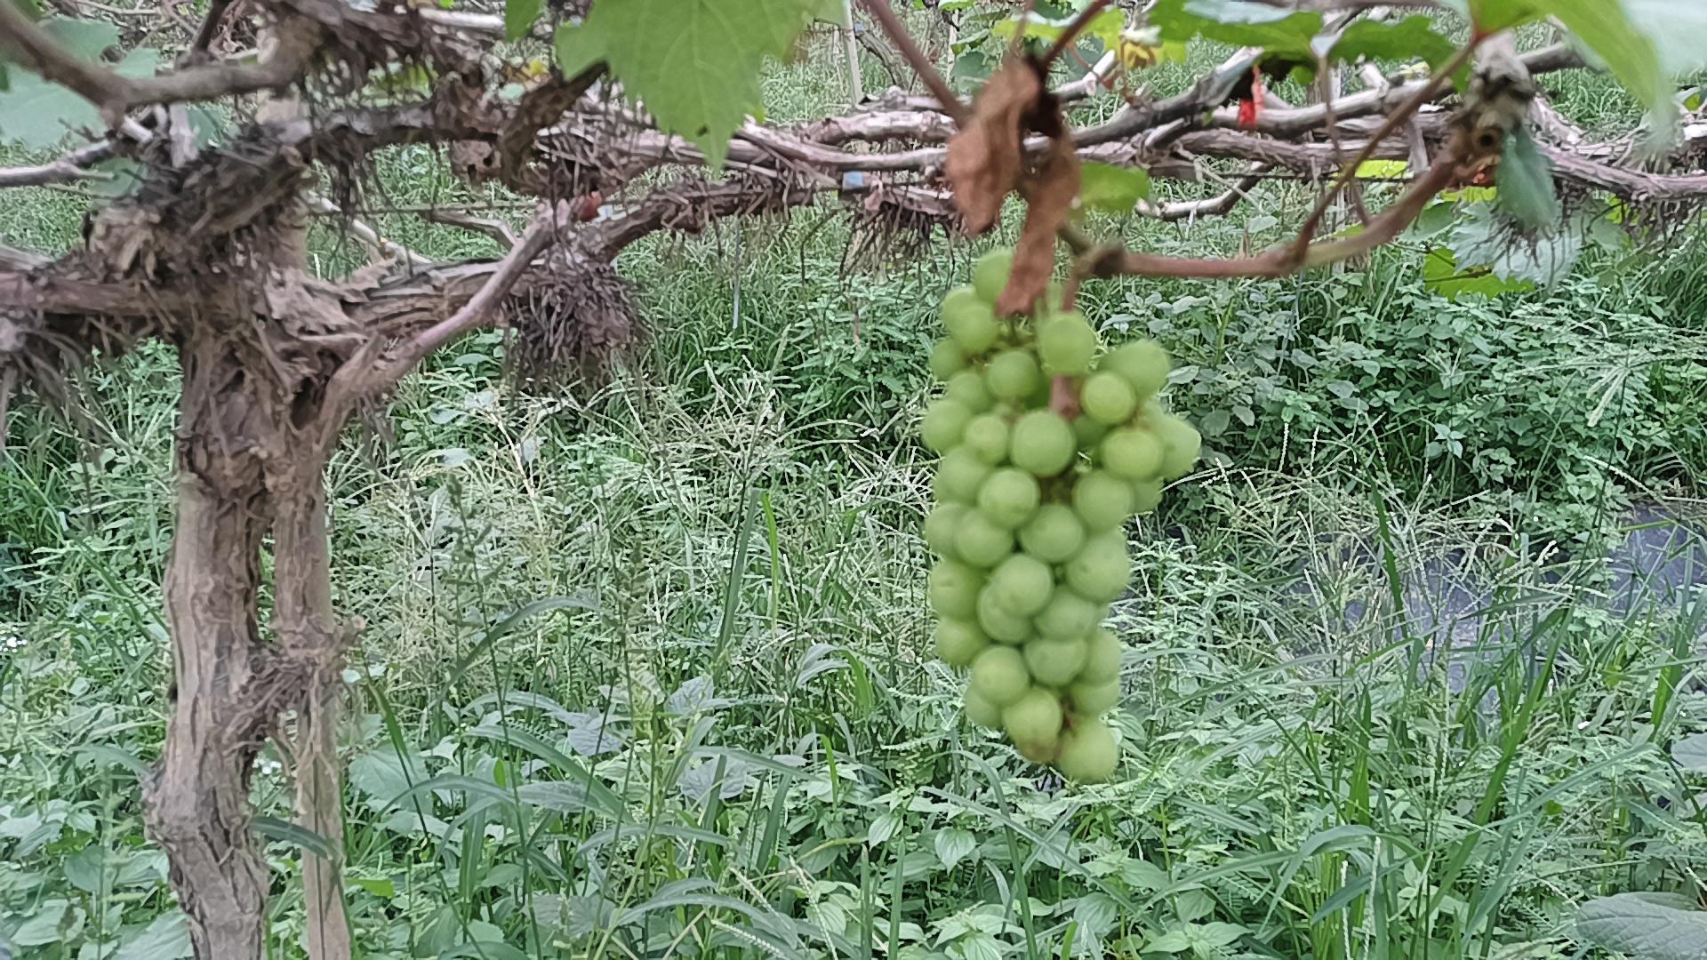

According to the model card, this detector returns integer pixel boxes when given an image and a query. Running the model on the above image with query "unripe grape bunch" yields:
[922,249,1198,783]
